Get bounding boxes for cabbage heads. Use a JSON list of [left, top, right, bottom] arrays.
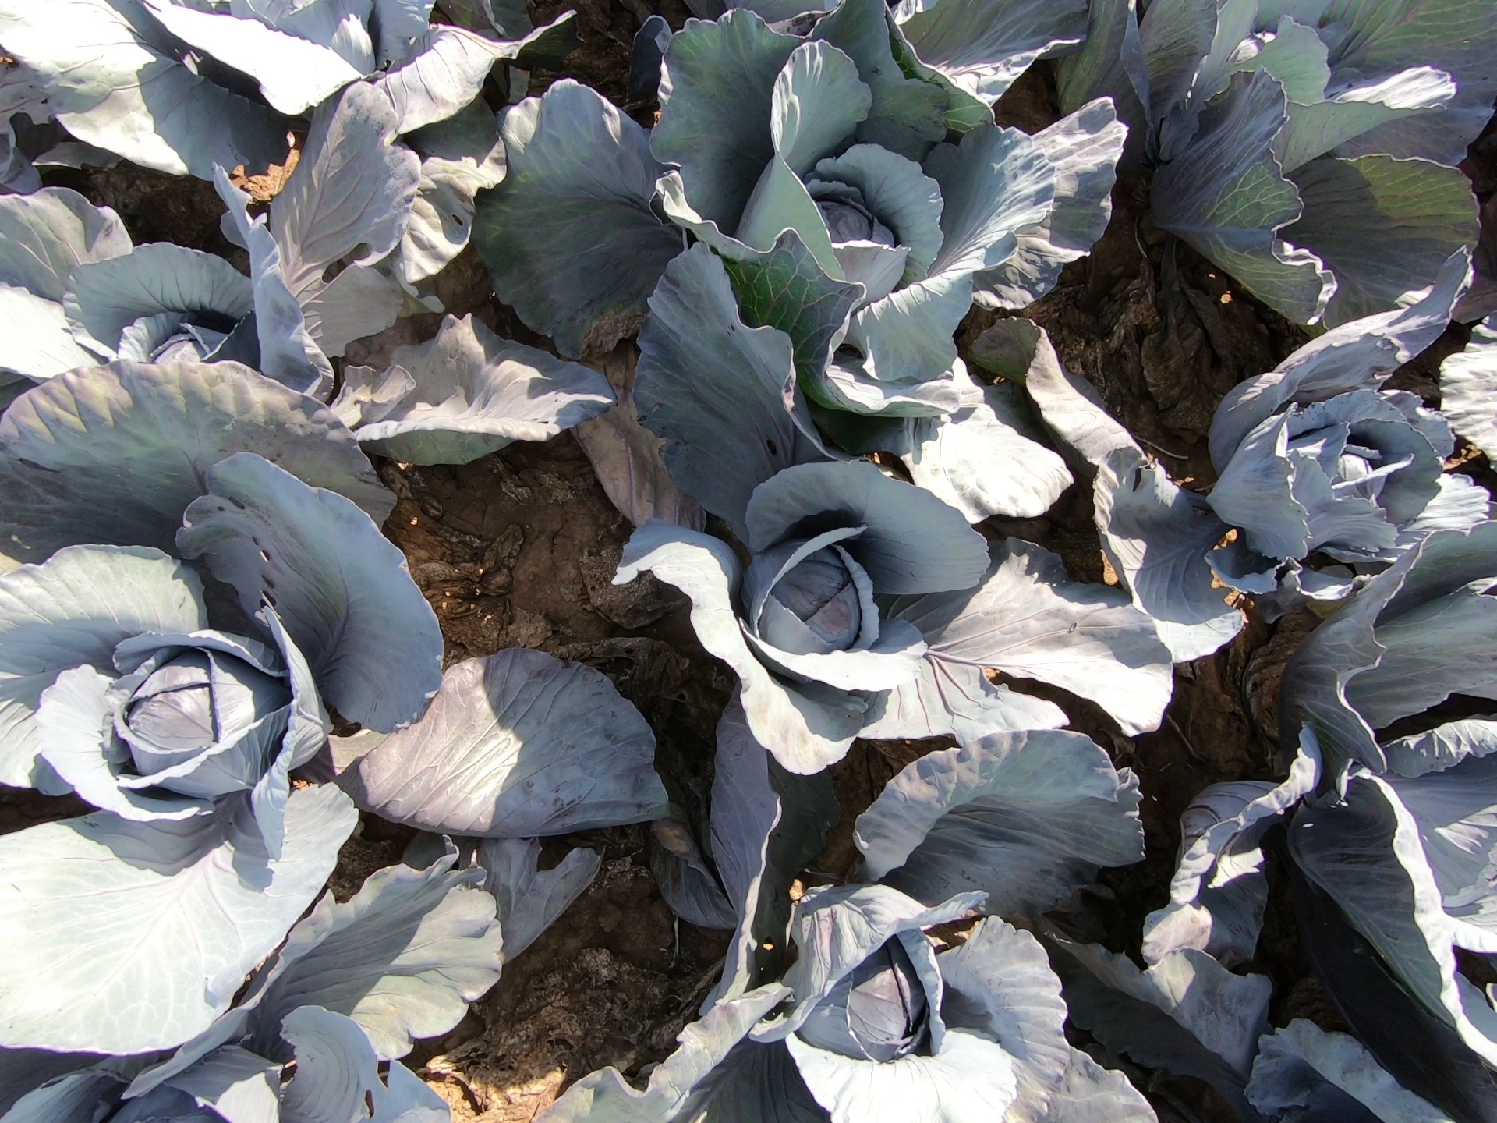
[[147, 328, 251, 416], [249, 2, 366, 55], [750, 548, 865, 659], [787, 199, 885, 296], [802, 909, 935, 1068], [1223, 30, 1294, 115], [125, 649, 274, 793], [1289, 448, 1384, 526], [108, 1056, 264, 1121], [1395, 773, 1495, 906]]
